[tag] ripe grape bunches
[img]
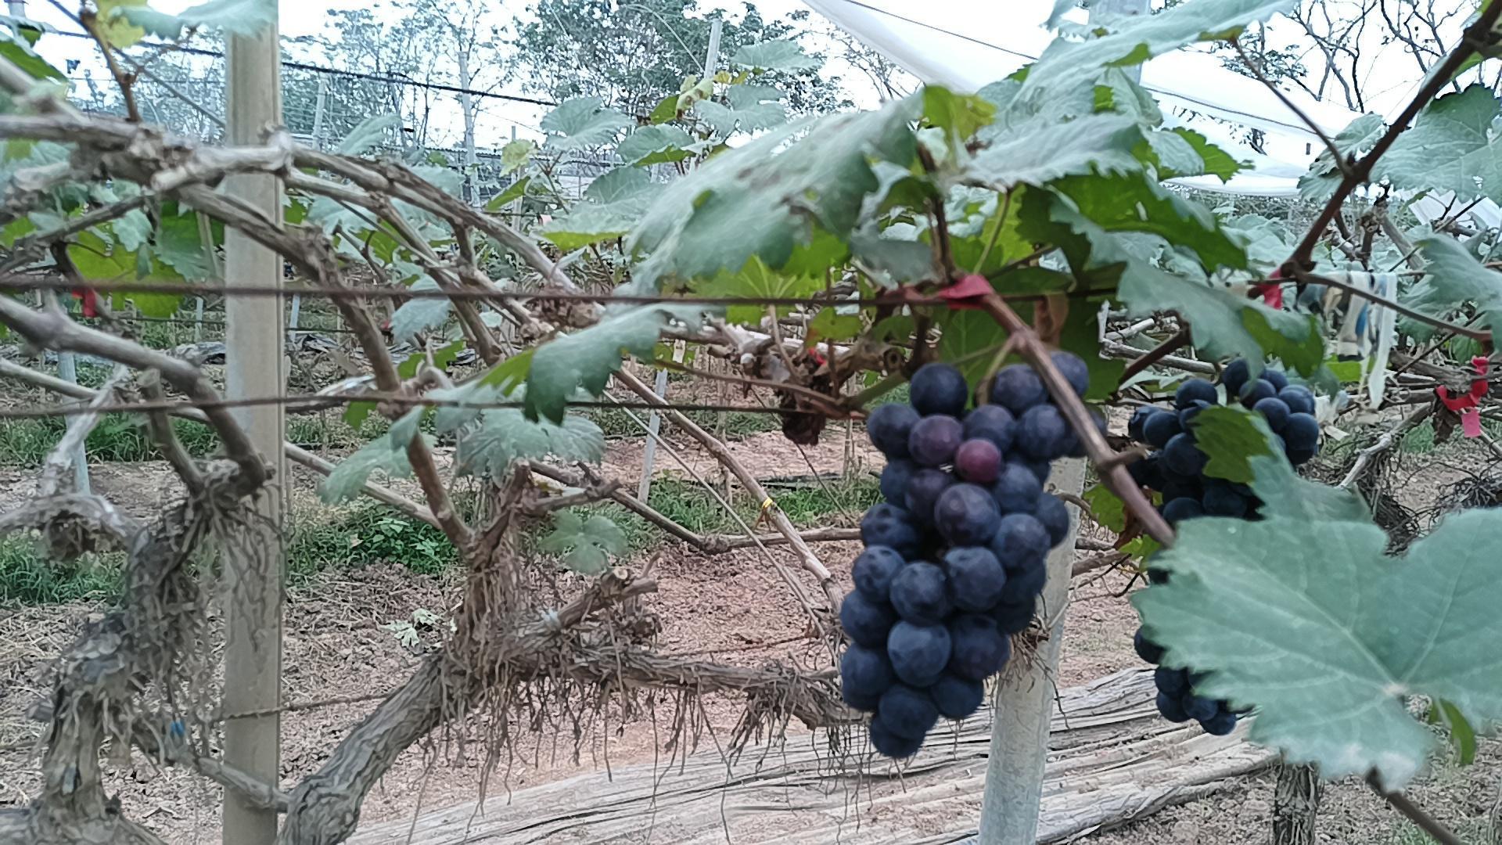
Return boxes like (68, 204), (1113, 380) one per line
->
(841, 342), (1087, 757)
(1129, 358), (1318, 736)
